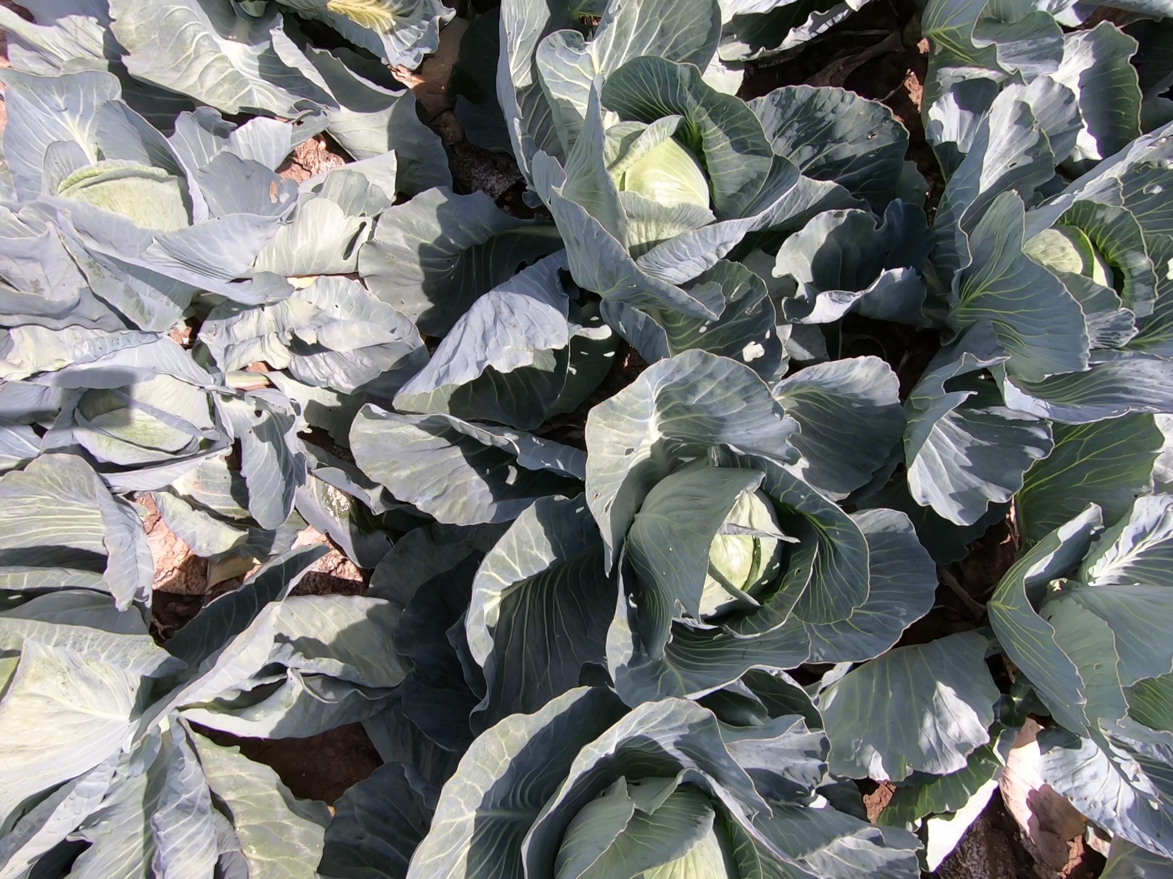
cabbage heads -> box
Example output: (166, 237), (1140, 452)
(988, 224), (1119, 339)
(3, 585), (145, 802)
(622, 468), (783, 621)
(65, 344), (210, 465)
(557, 119), (712, 272)
(558, 778), (739, 877)
(49, 168), (197, 273)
